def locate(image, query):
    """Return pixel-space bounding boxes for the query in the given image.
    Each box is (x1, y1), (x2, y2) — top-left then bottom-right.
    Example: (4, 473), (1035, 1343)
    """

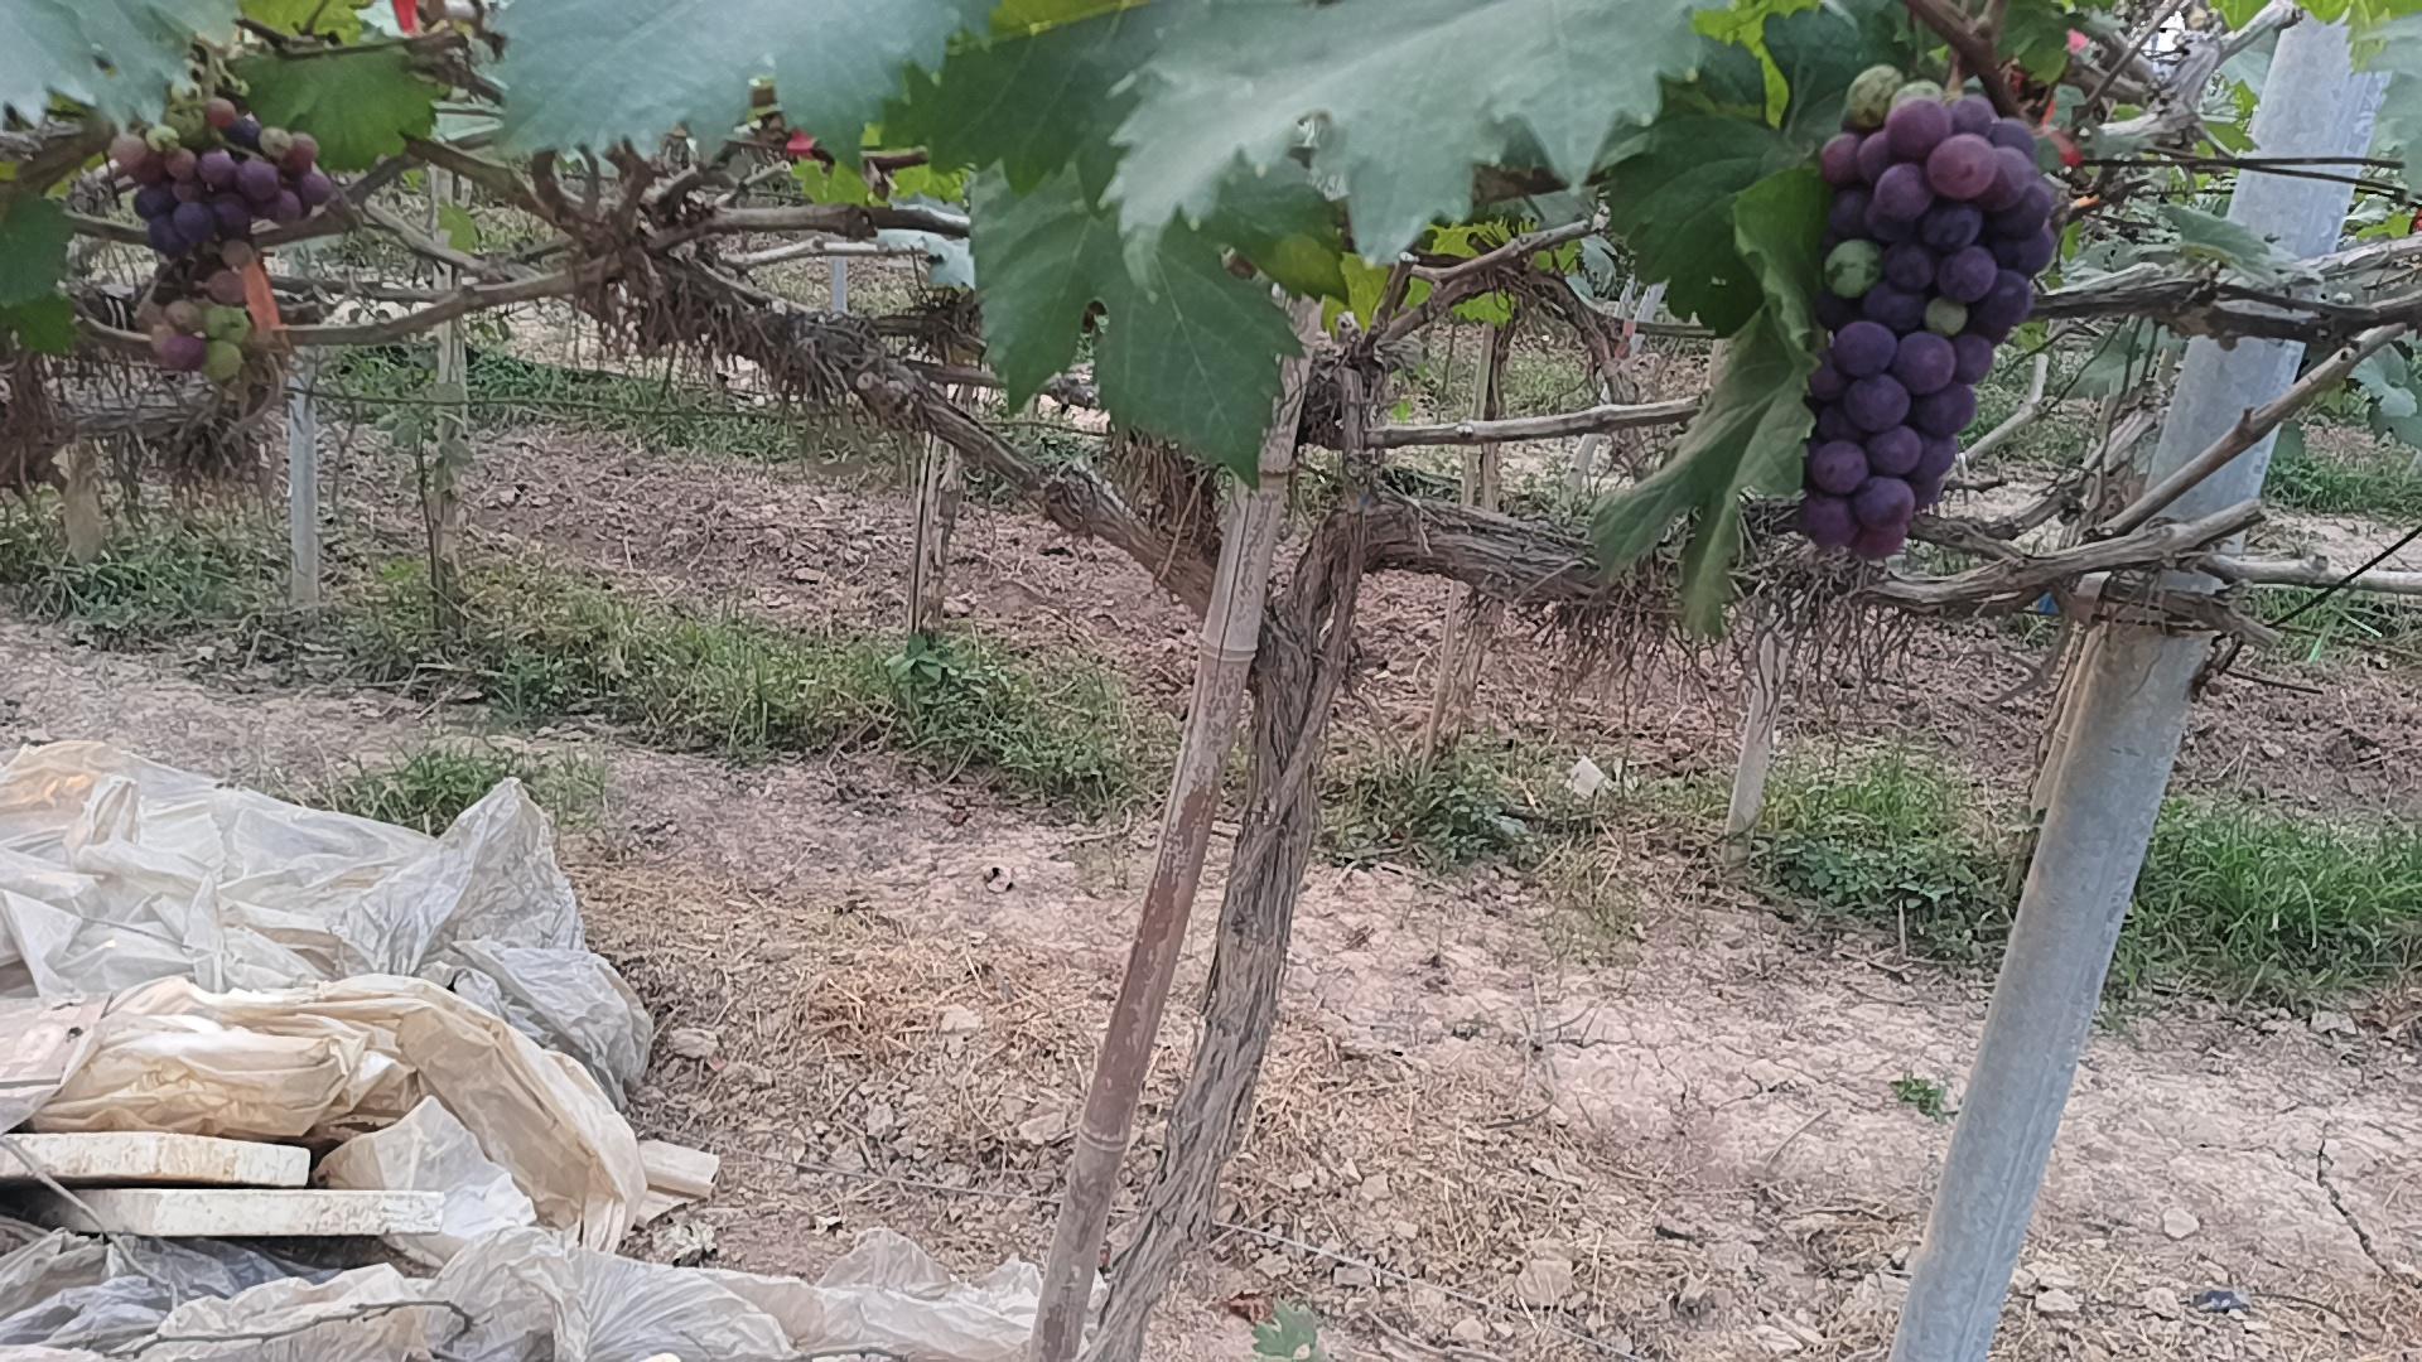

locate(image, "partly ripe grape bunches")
(1798, 64), (2057, 560)
(107, 97), (336, 380)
